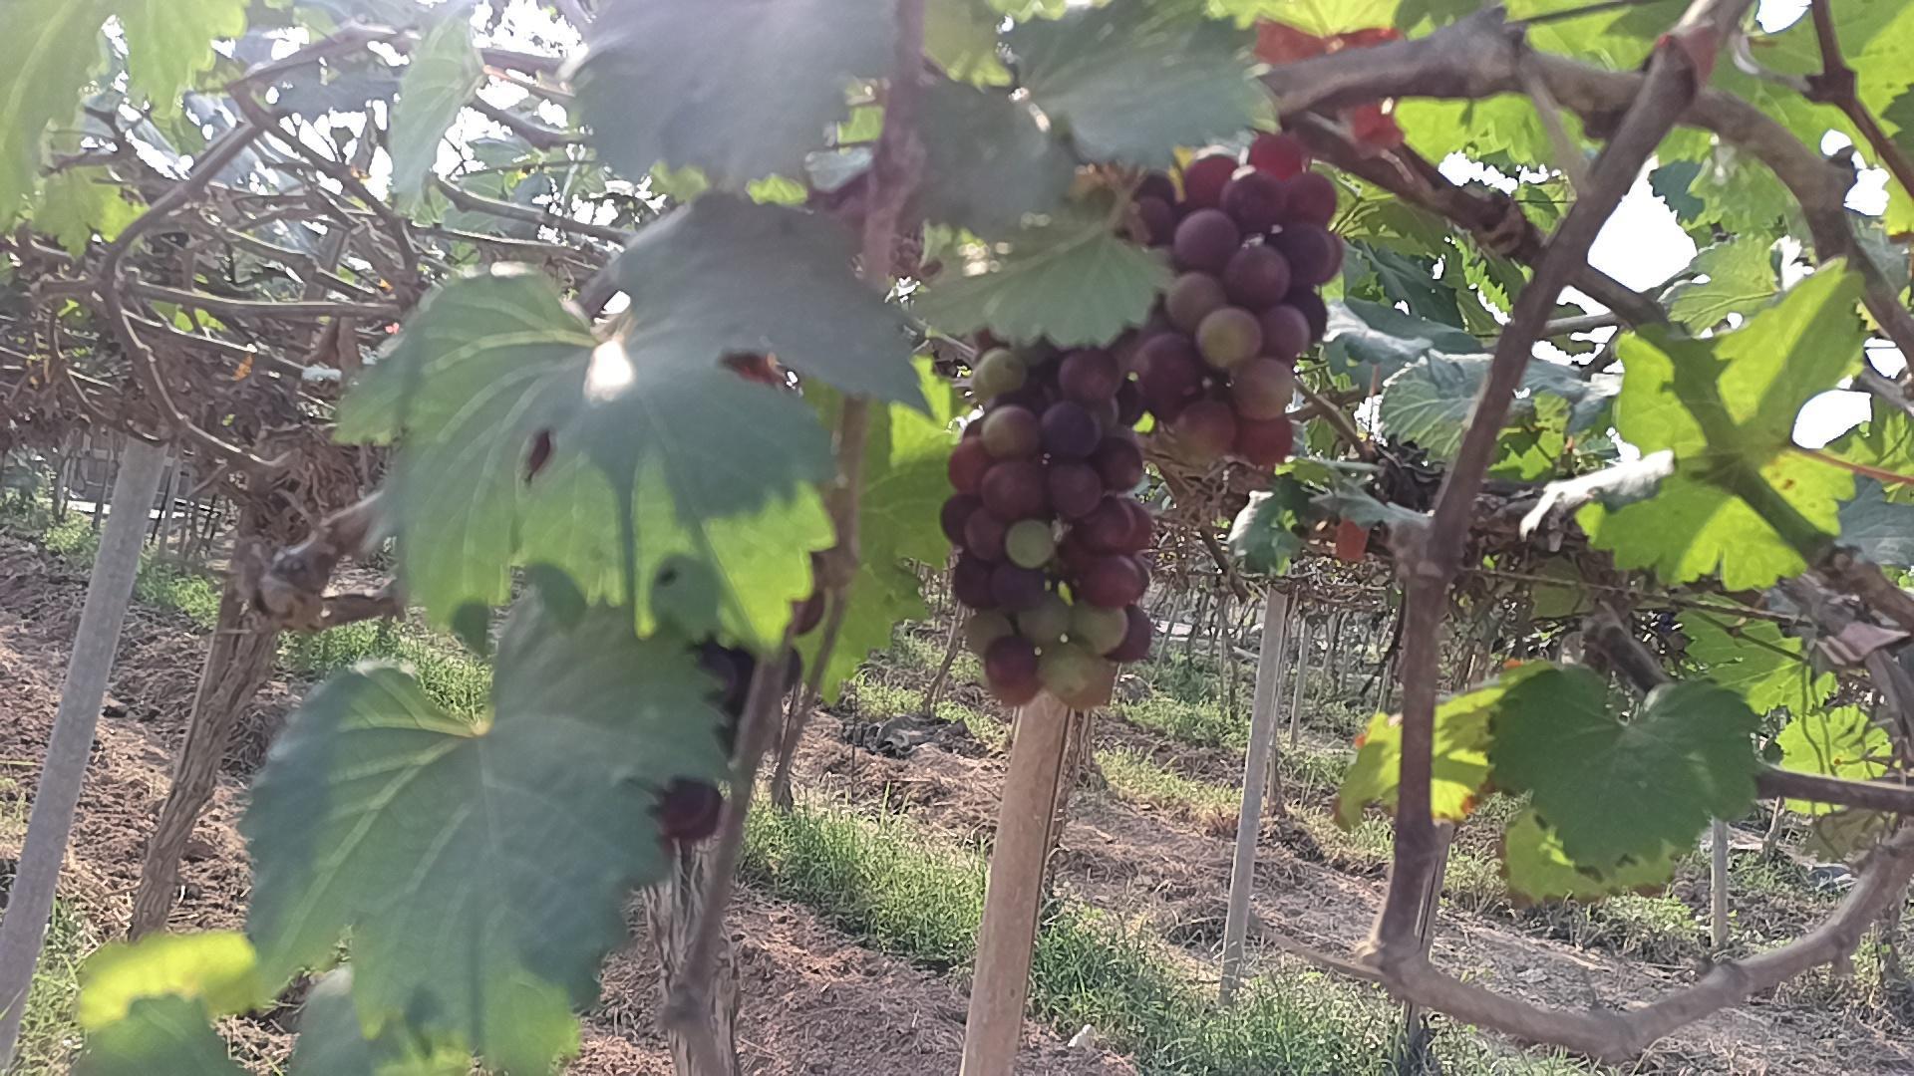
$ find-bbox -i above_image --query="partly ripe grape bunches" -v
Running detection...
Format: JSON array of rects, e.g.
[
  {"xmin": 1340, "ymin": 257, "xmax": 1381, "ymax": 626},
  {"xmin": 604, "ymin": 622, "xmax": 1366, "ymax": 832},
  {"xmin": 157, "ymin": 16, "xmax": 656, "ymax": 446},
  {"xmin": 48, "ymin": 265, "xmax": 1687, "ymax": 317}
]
[
  {"xmin": 942, "ymin": 326, "xmax": 1152, "ymax": 708},
  {"xmin": 1136, "ymin": 129, "xmax": 1343, "ymax": 472}
]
